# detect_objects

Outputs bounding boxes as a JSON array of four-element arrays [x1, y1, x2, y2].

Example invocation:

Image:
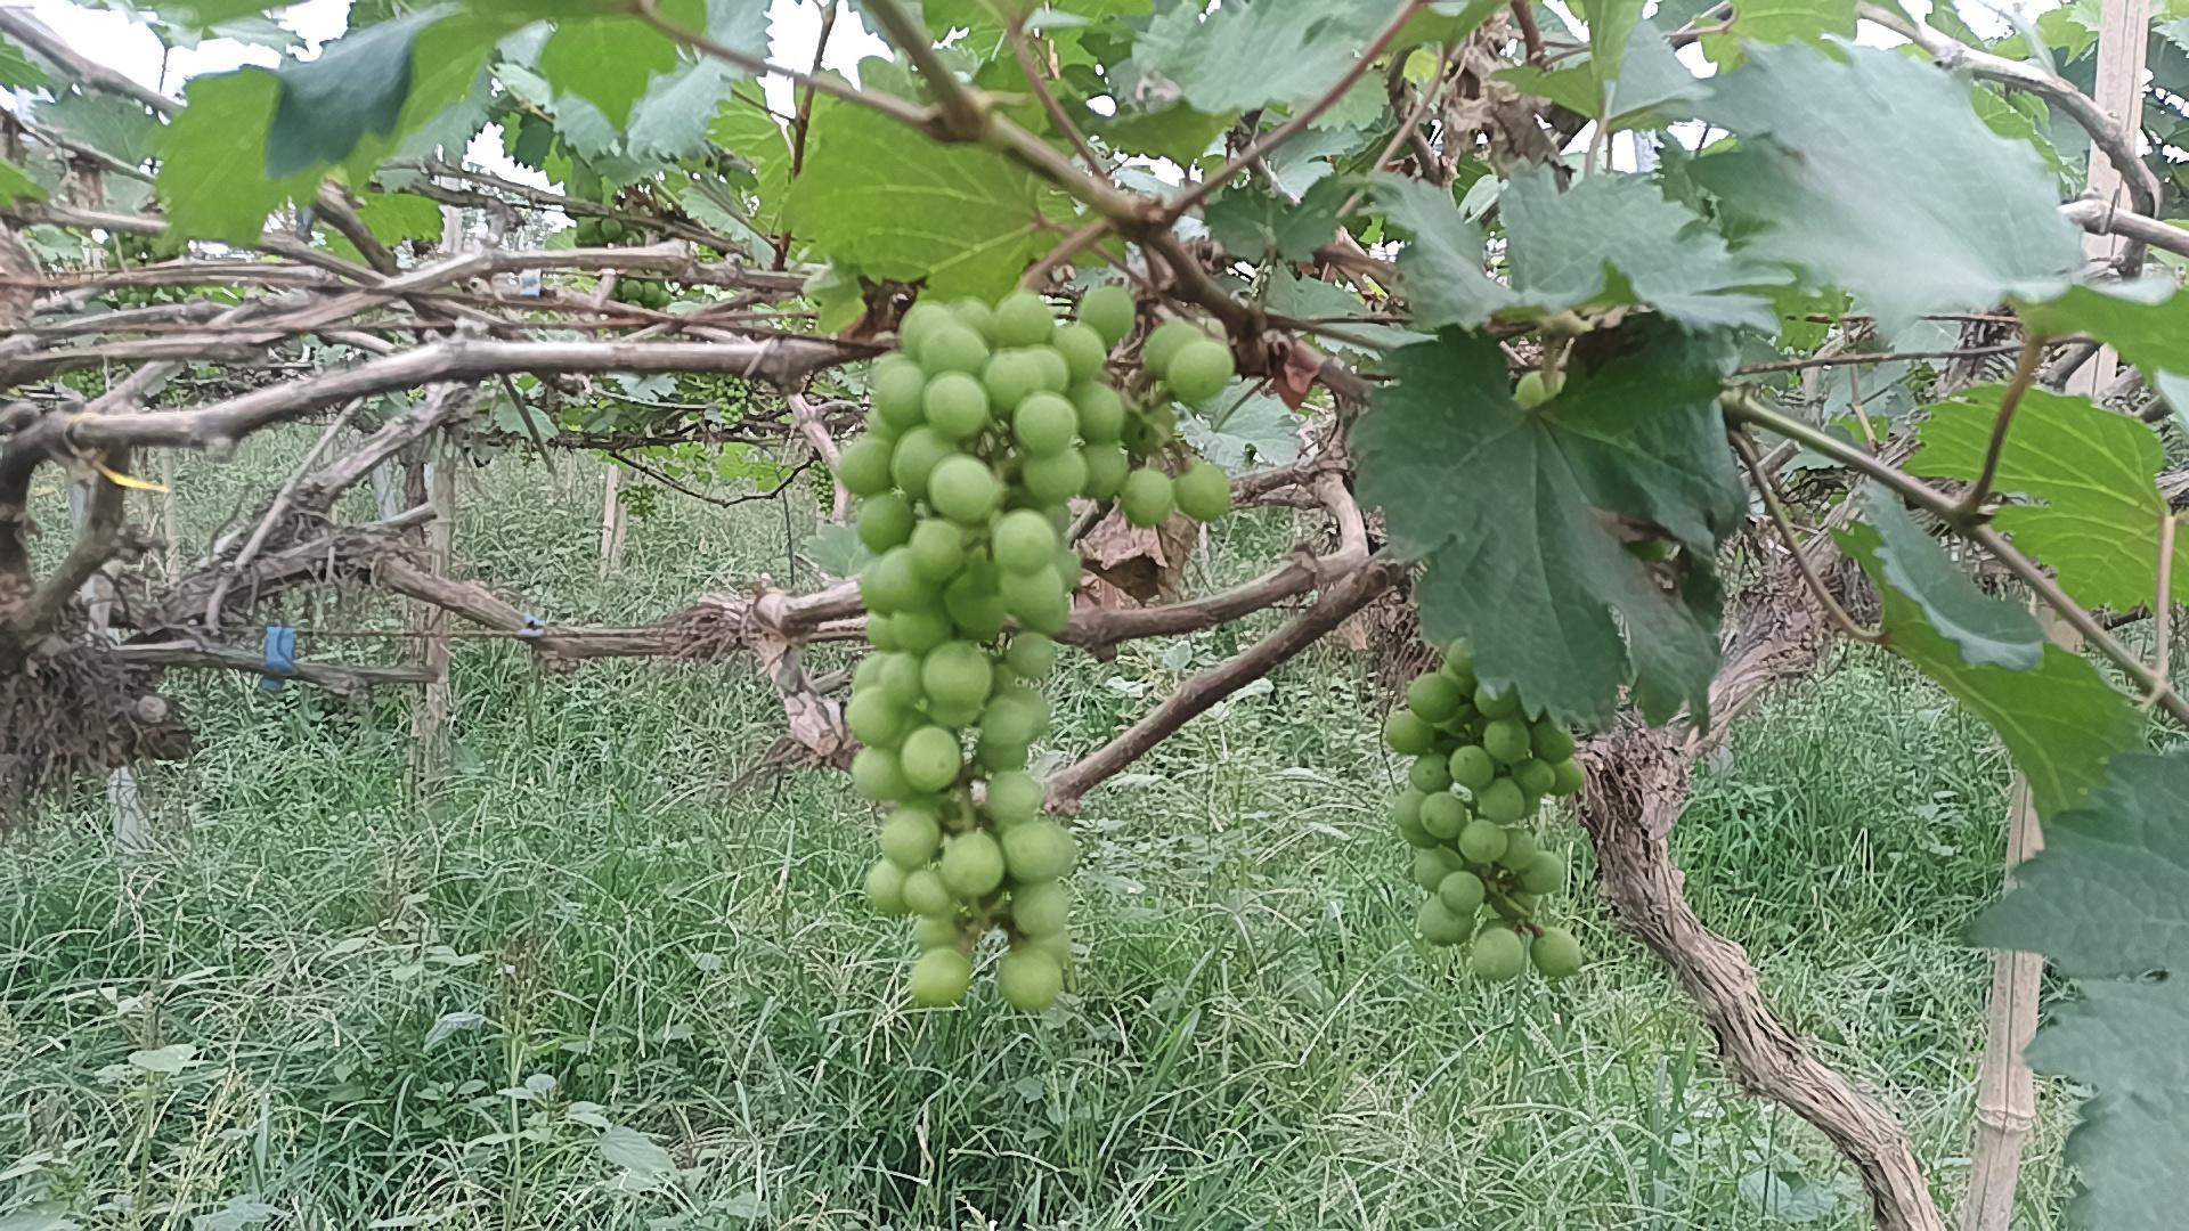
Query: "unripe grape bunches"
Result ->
[[617, 481, 662, 522], [839, 287, 1231, 1009], [573, 217, 673, 309], [809, 459, 838, 517], [1385, 652, 1581, 979]]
